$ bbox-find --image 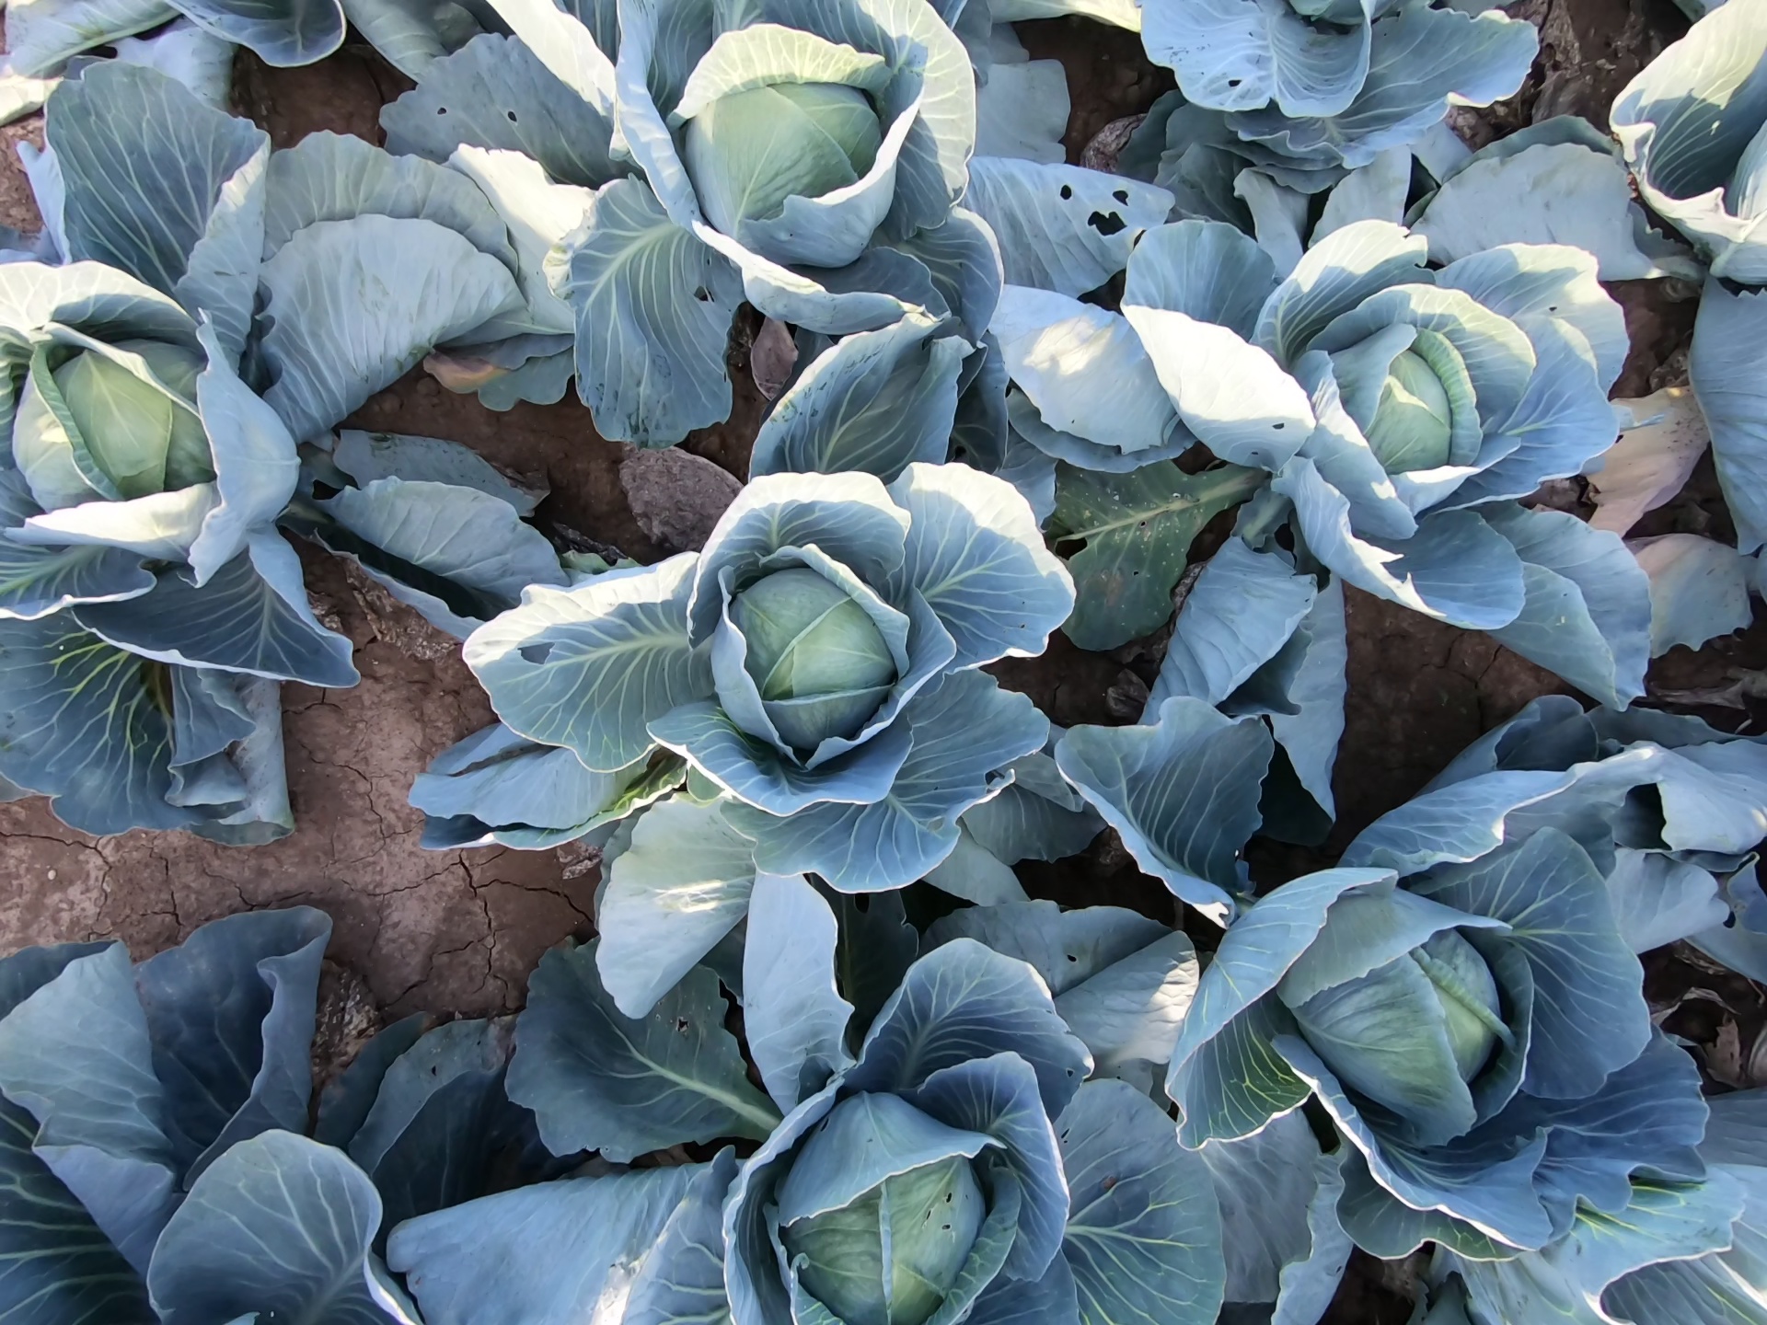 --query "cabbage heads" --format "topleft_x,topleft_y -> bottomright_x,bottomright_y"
1316,342 -> 1468,516
686,63 -> 889,253
780,1112 -> 983,1322
1297,904 -> 1501,1115
715,562 -> 903,746
37,340 -> 253,536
